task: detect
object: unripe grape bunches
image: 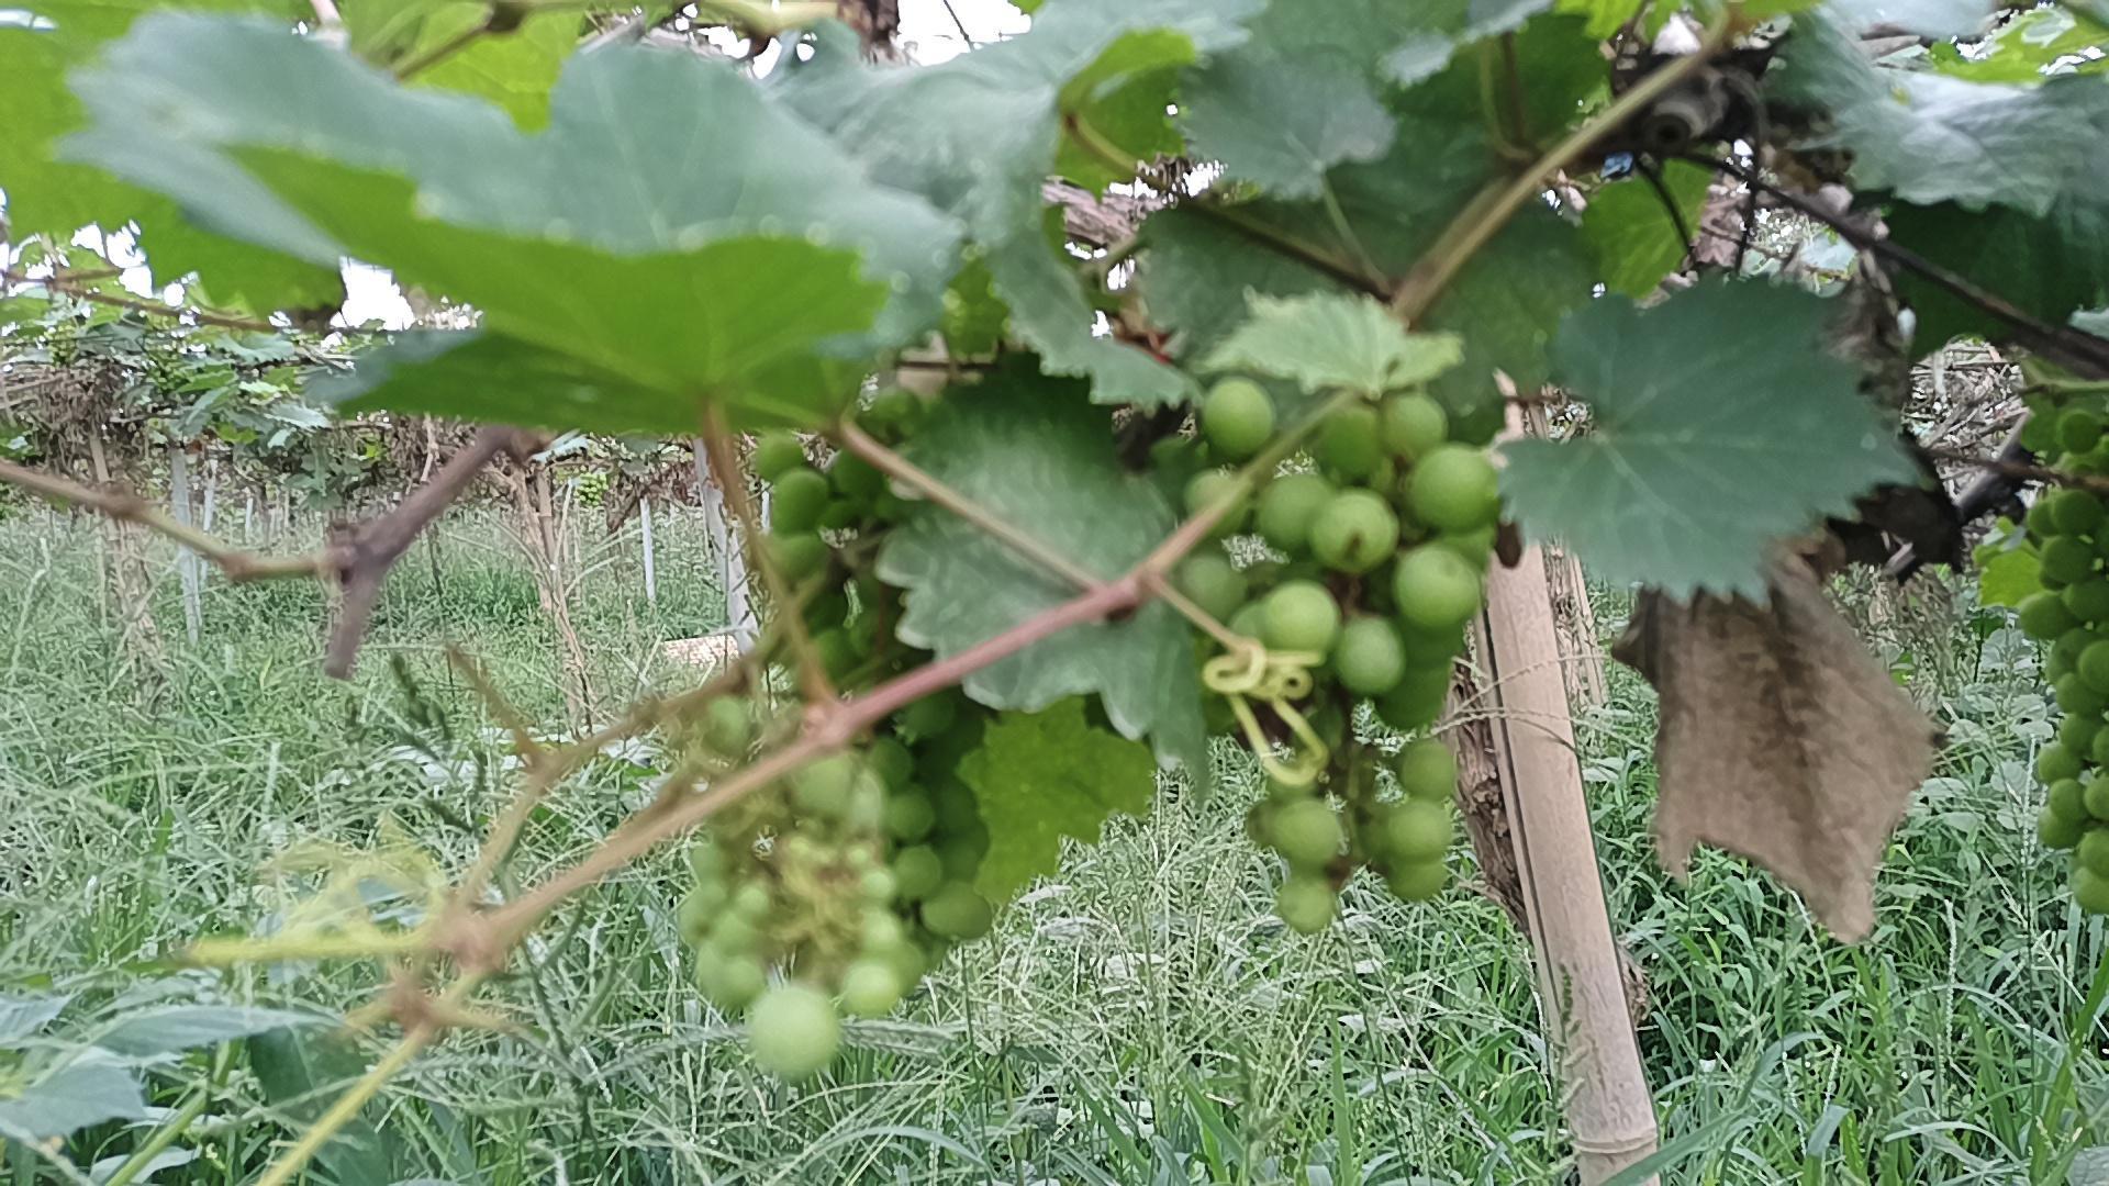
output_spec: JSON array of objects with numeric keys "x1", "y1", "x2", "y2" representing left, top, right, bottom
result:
[
  {"x1": 1169, "y1": 377, "x2": 1499, "y2": 933},
  {"x1": 685, "y1": 435, "x2": 993, "y2": 1081},
  {"x1": 2018, "y1": 406, "x2": 2108, "y2": 917}
]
